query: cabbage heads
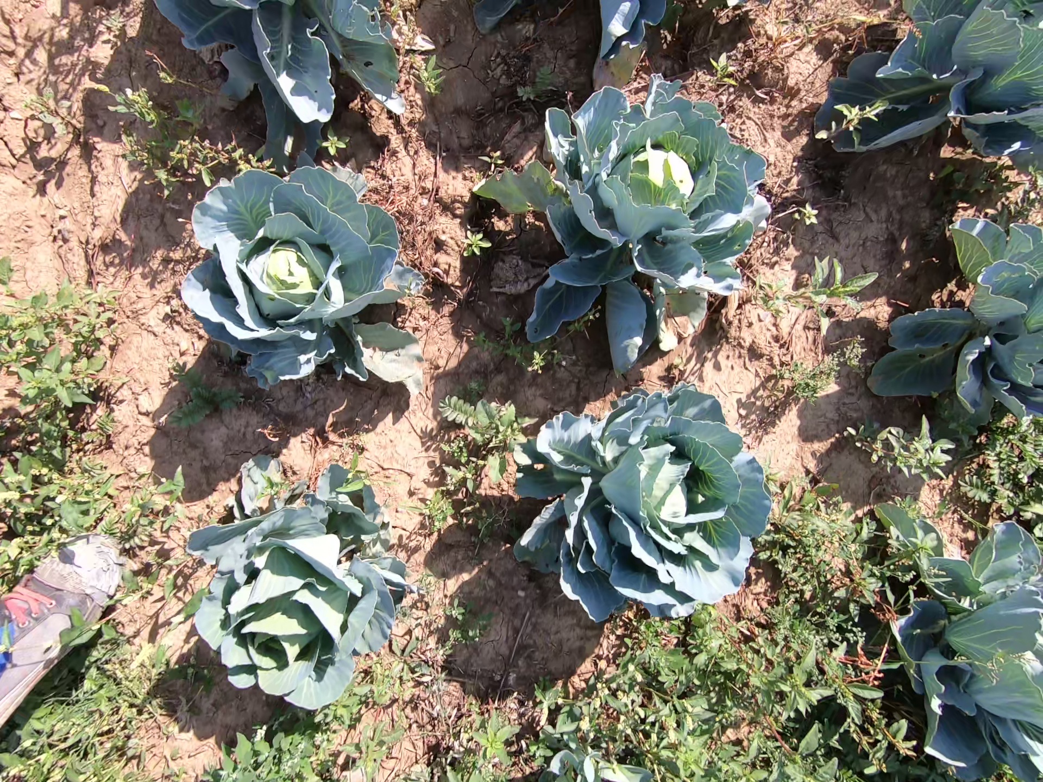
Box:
[248,242,342,313]
[254,569,326,644]
[623,146,694,213]
[619,449,687,527]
